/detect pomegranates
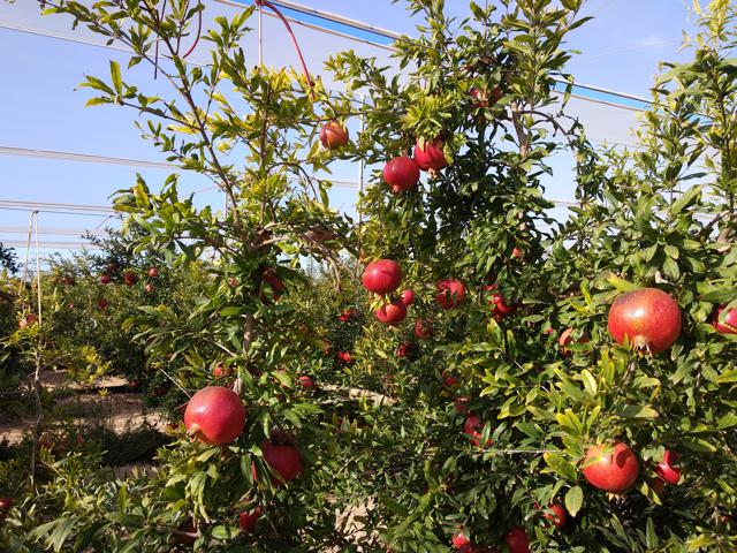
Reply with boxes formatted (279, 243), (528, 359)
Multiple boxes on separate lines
(184, 386), (246, 445)
(397, 343), (410, 357)
(238, 506), (263, 531)
(484, 282), (517, 323)
(653, 449), (682, 491)
(319, 120), (349, 150)
(299, 374), (314, 389)
(557, 326), (592, 356)
(434, 278), (465, 310)
(451, 531), (486, 553)
(362, 258), (402, 302)
(542, 502), (565, 529)
(503, 528), (529, 553)
(374, 301), (407, 326)
(413, 137), (448, 181)
(711, 303), (737, 334)
(471, 88), (501, 108)
(397, 288), (415, 308)
(582, 441), (638, 501)
(337, 350), (354, 364)
(607, 287), (683, 357)
(382, 156), (420, 195)
(261, 274), (284, 308)
(415, 319), (433, 339)
(445, 376), (457, 388)
(455, 397), (469, 414)
(252, 440), (305, 487)
(463, 414), (494, 448)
